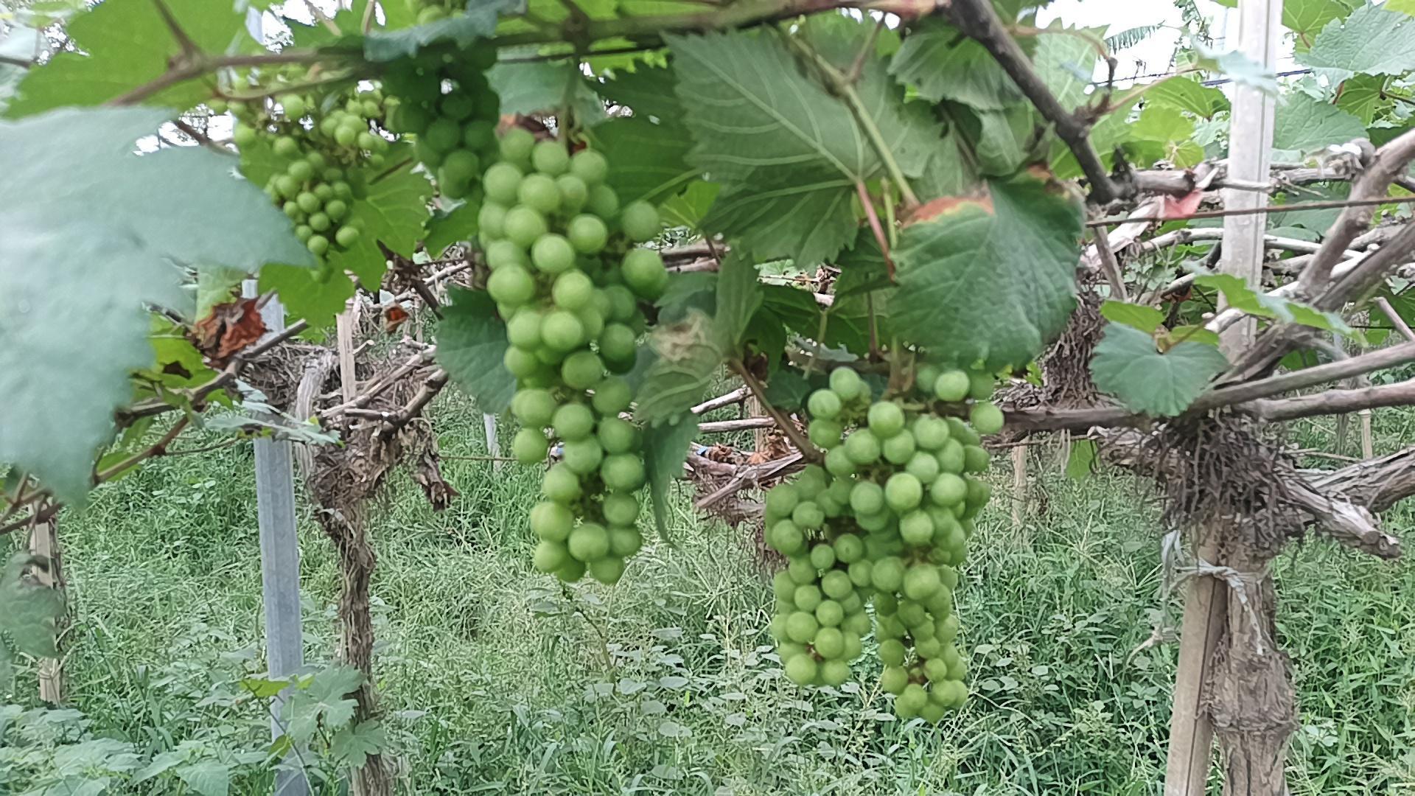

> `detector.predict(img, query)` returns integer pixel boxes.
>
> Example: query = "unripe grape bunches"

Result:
[377,35,501,198]
[477,124,667,584]
[808,364,1004,722]
[206,65,396,259]
[764,466,876,687]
